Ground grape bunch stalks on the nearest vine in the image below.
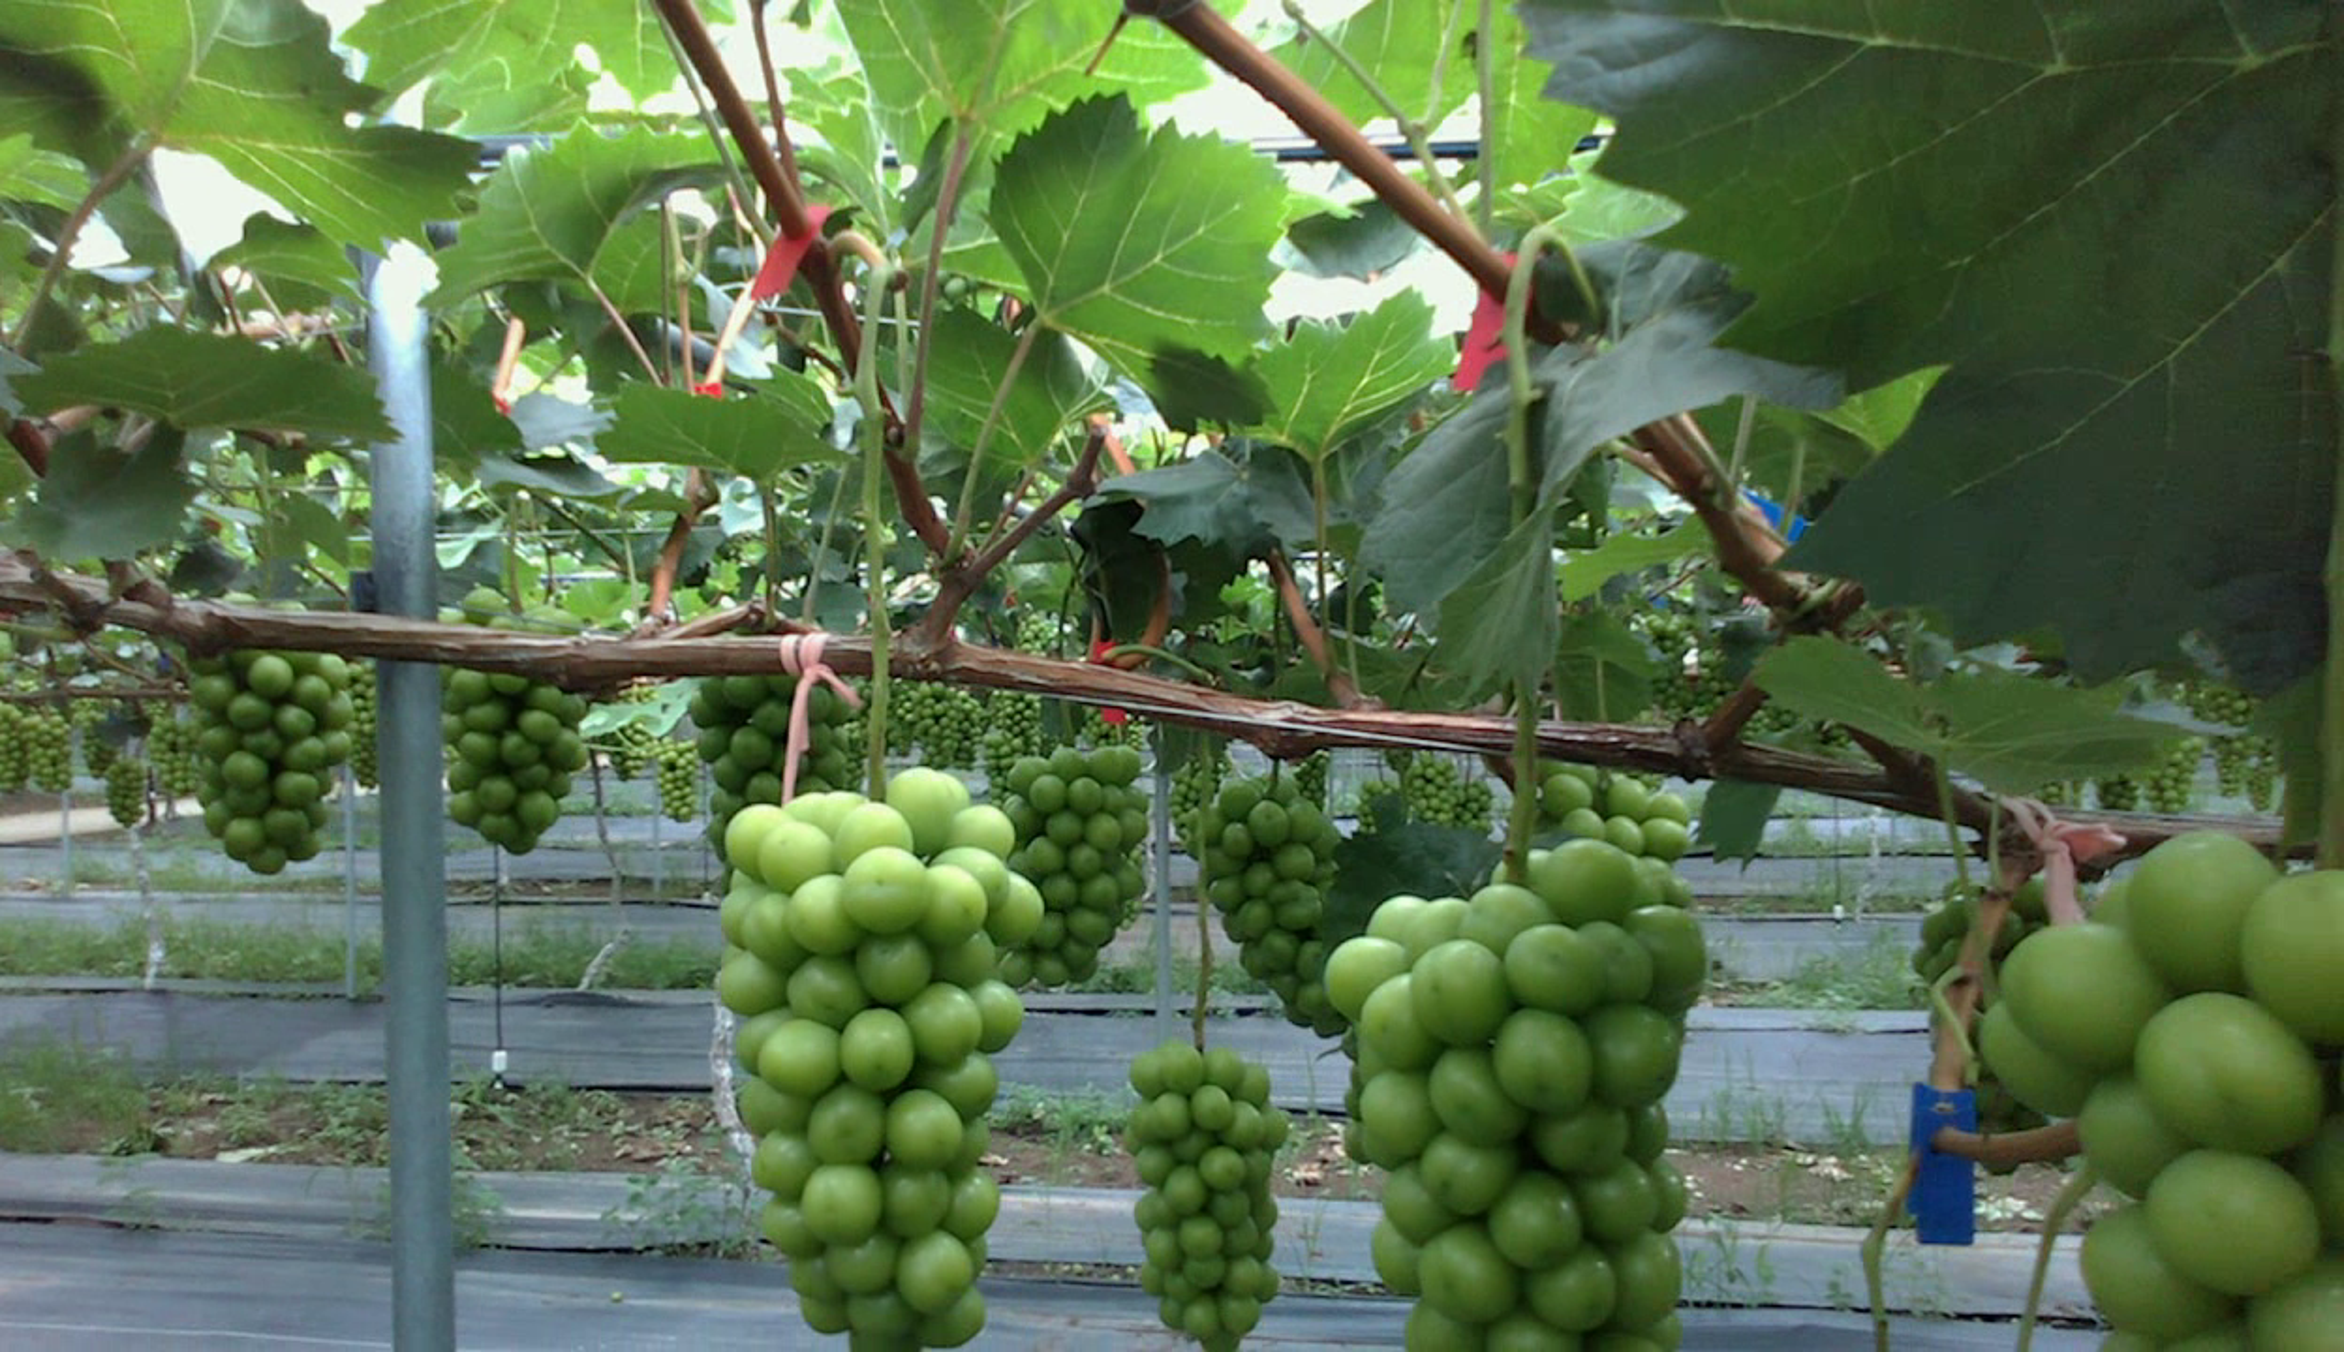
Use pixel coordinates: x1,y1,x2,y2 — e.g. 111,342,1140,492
826,231,888,802
1503,227,1600,886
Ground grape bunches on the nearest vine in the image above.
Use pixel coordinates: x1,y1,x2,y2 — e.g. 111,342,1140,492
719,766,1046,1350
1326,839,1709,1350
1978,828,2342,1350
